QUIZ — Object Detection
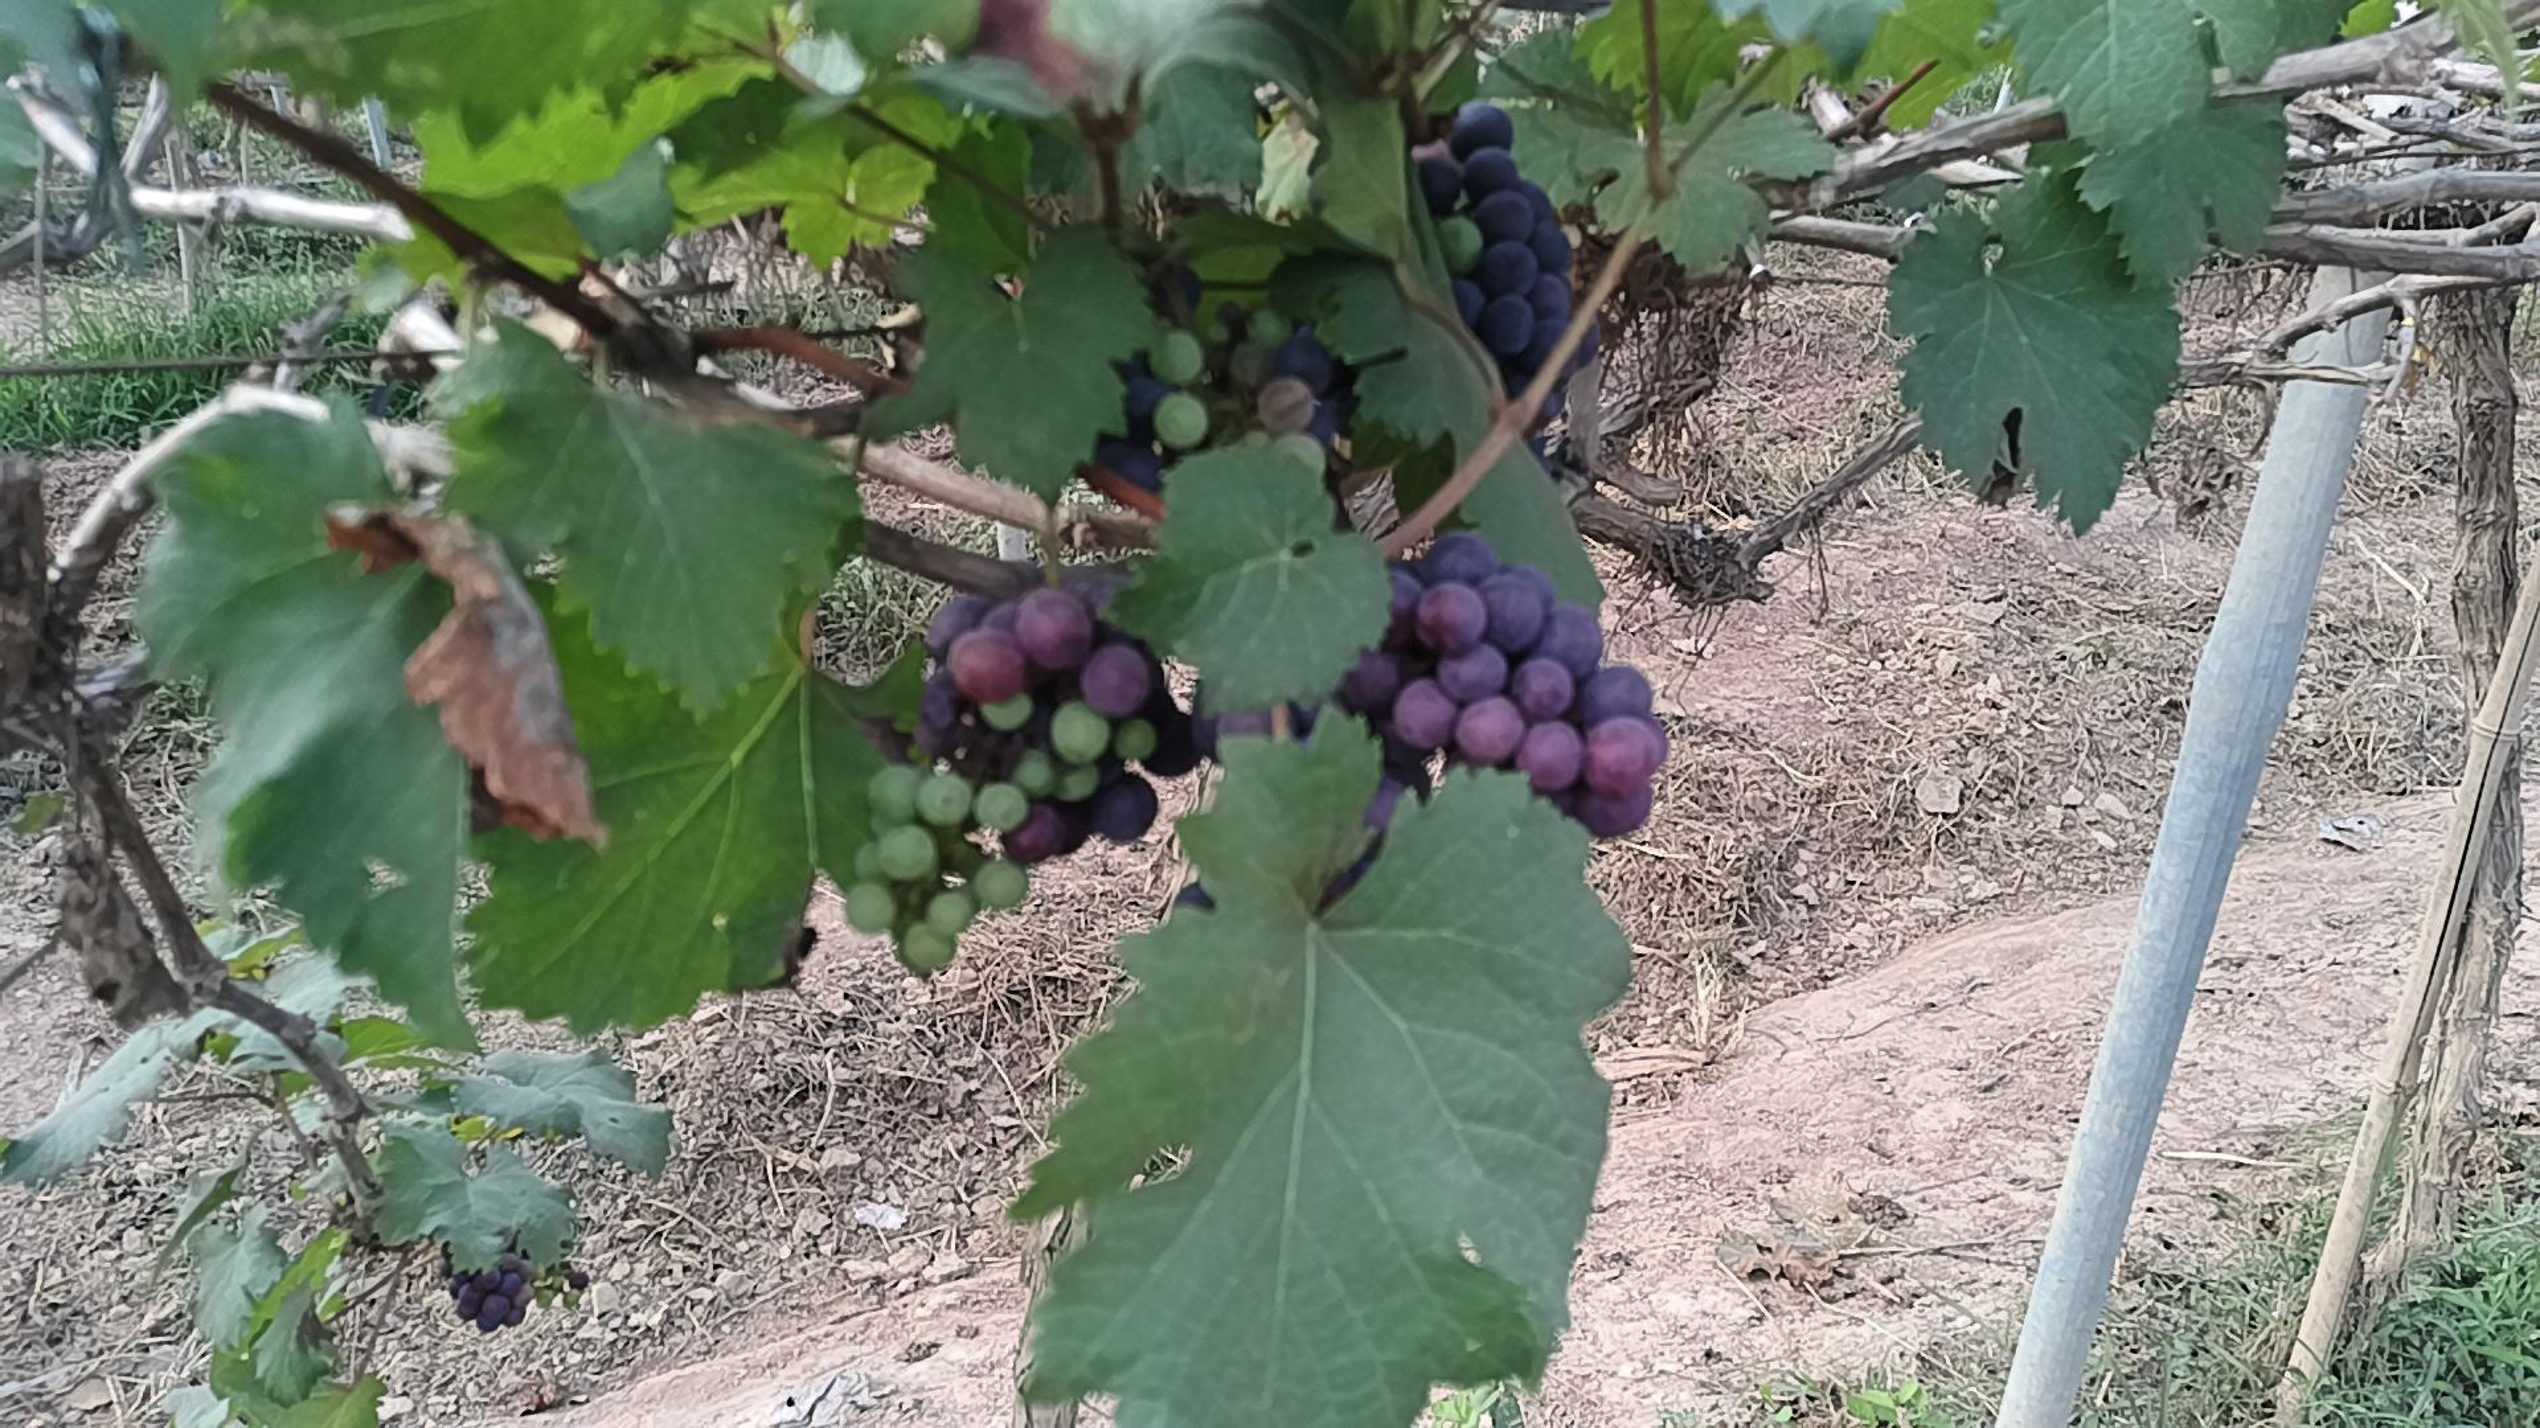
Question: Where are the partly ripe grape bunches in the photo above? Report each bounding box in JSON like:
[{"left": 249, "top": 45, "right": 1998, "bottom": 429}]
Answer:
[
  {"left": 845, "top": 587, "right": 1203, "bottom": 971},
  {"left": 441, "top": 1232, "right": 587, "bottom": 1331},
  {"left": 1105, "top": 250, "right": 1357, "bottom": 487}
]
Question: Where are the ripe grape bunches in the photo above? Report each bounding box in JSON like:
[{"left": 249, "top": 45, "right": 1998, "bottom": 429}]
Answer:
[
  {"left": 1413, "top": 103, "right": 1598, "bottom": 427},
  {"left": 1177, "top": 529, "right": 1670, "bottom": 915}
]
